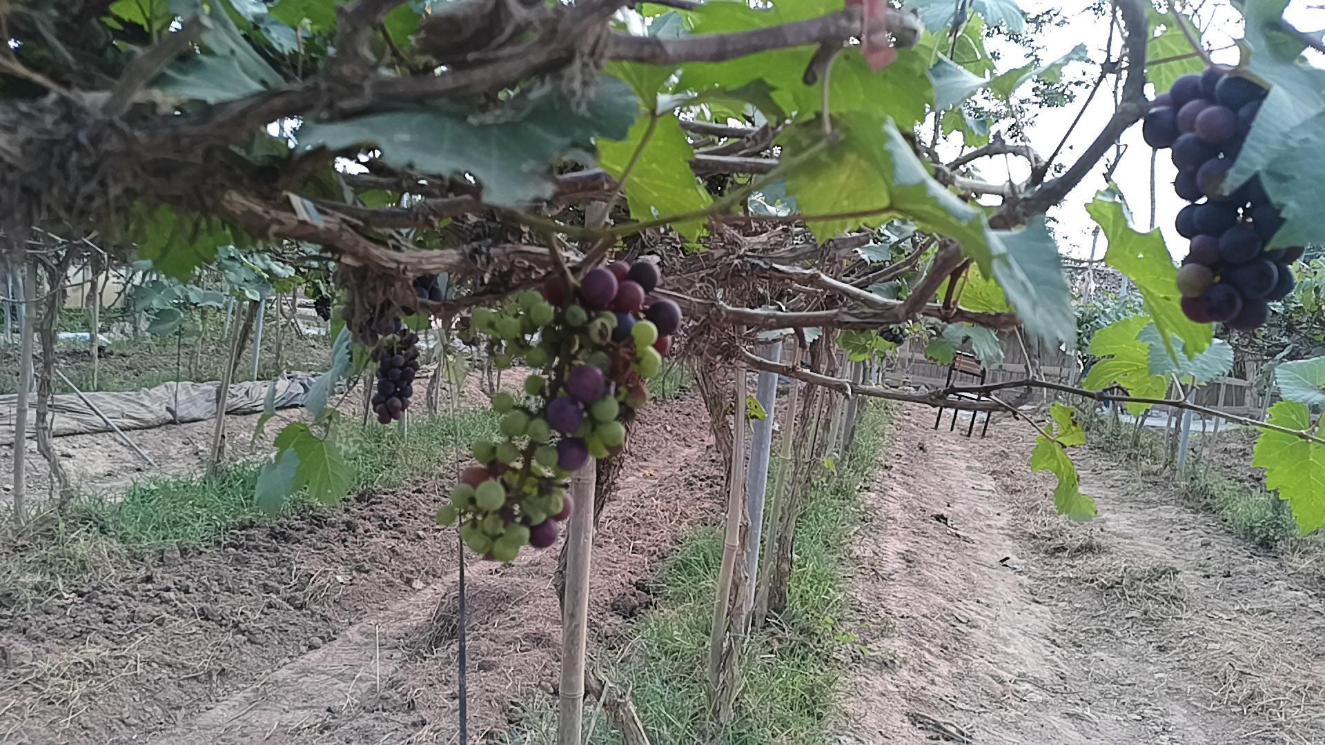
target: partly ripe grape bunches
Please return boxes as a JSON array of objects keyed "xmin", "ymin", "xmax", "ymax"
[
  {"xmin": 1144, "ymin": 66, "xmax": 1304, "ymax": 330},
  {"xmin": 438, "ymin": 260, "xmax": 681, "ymax": 562},
  {"xmin": 370, "ymin": 317, "xmax": 420, "ymax": 424}
]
